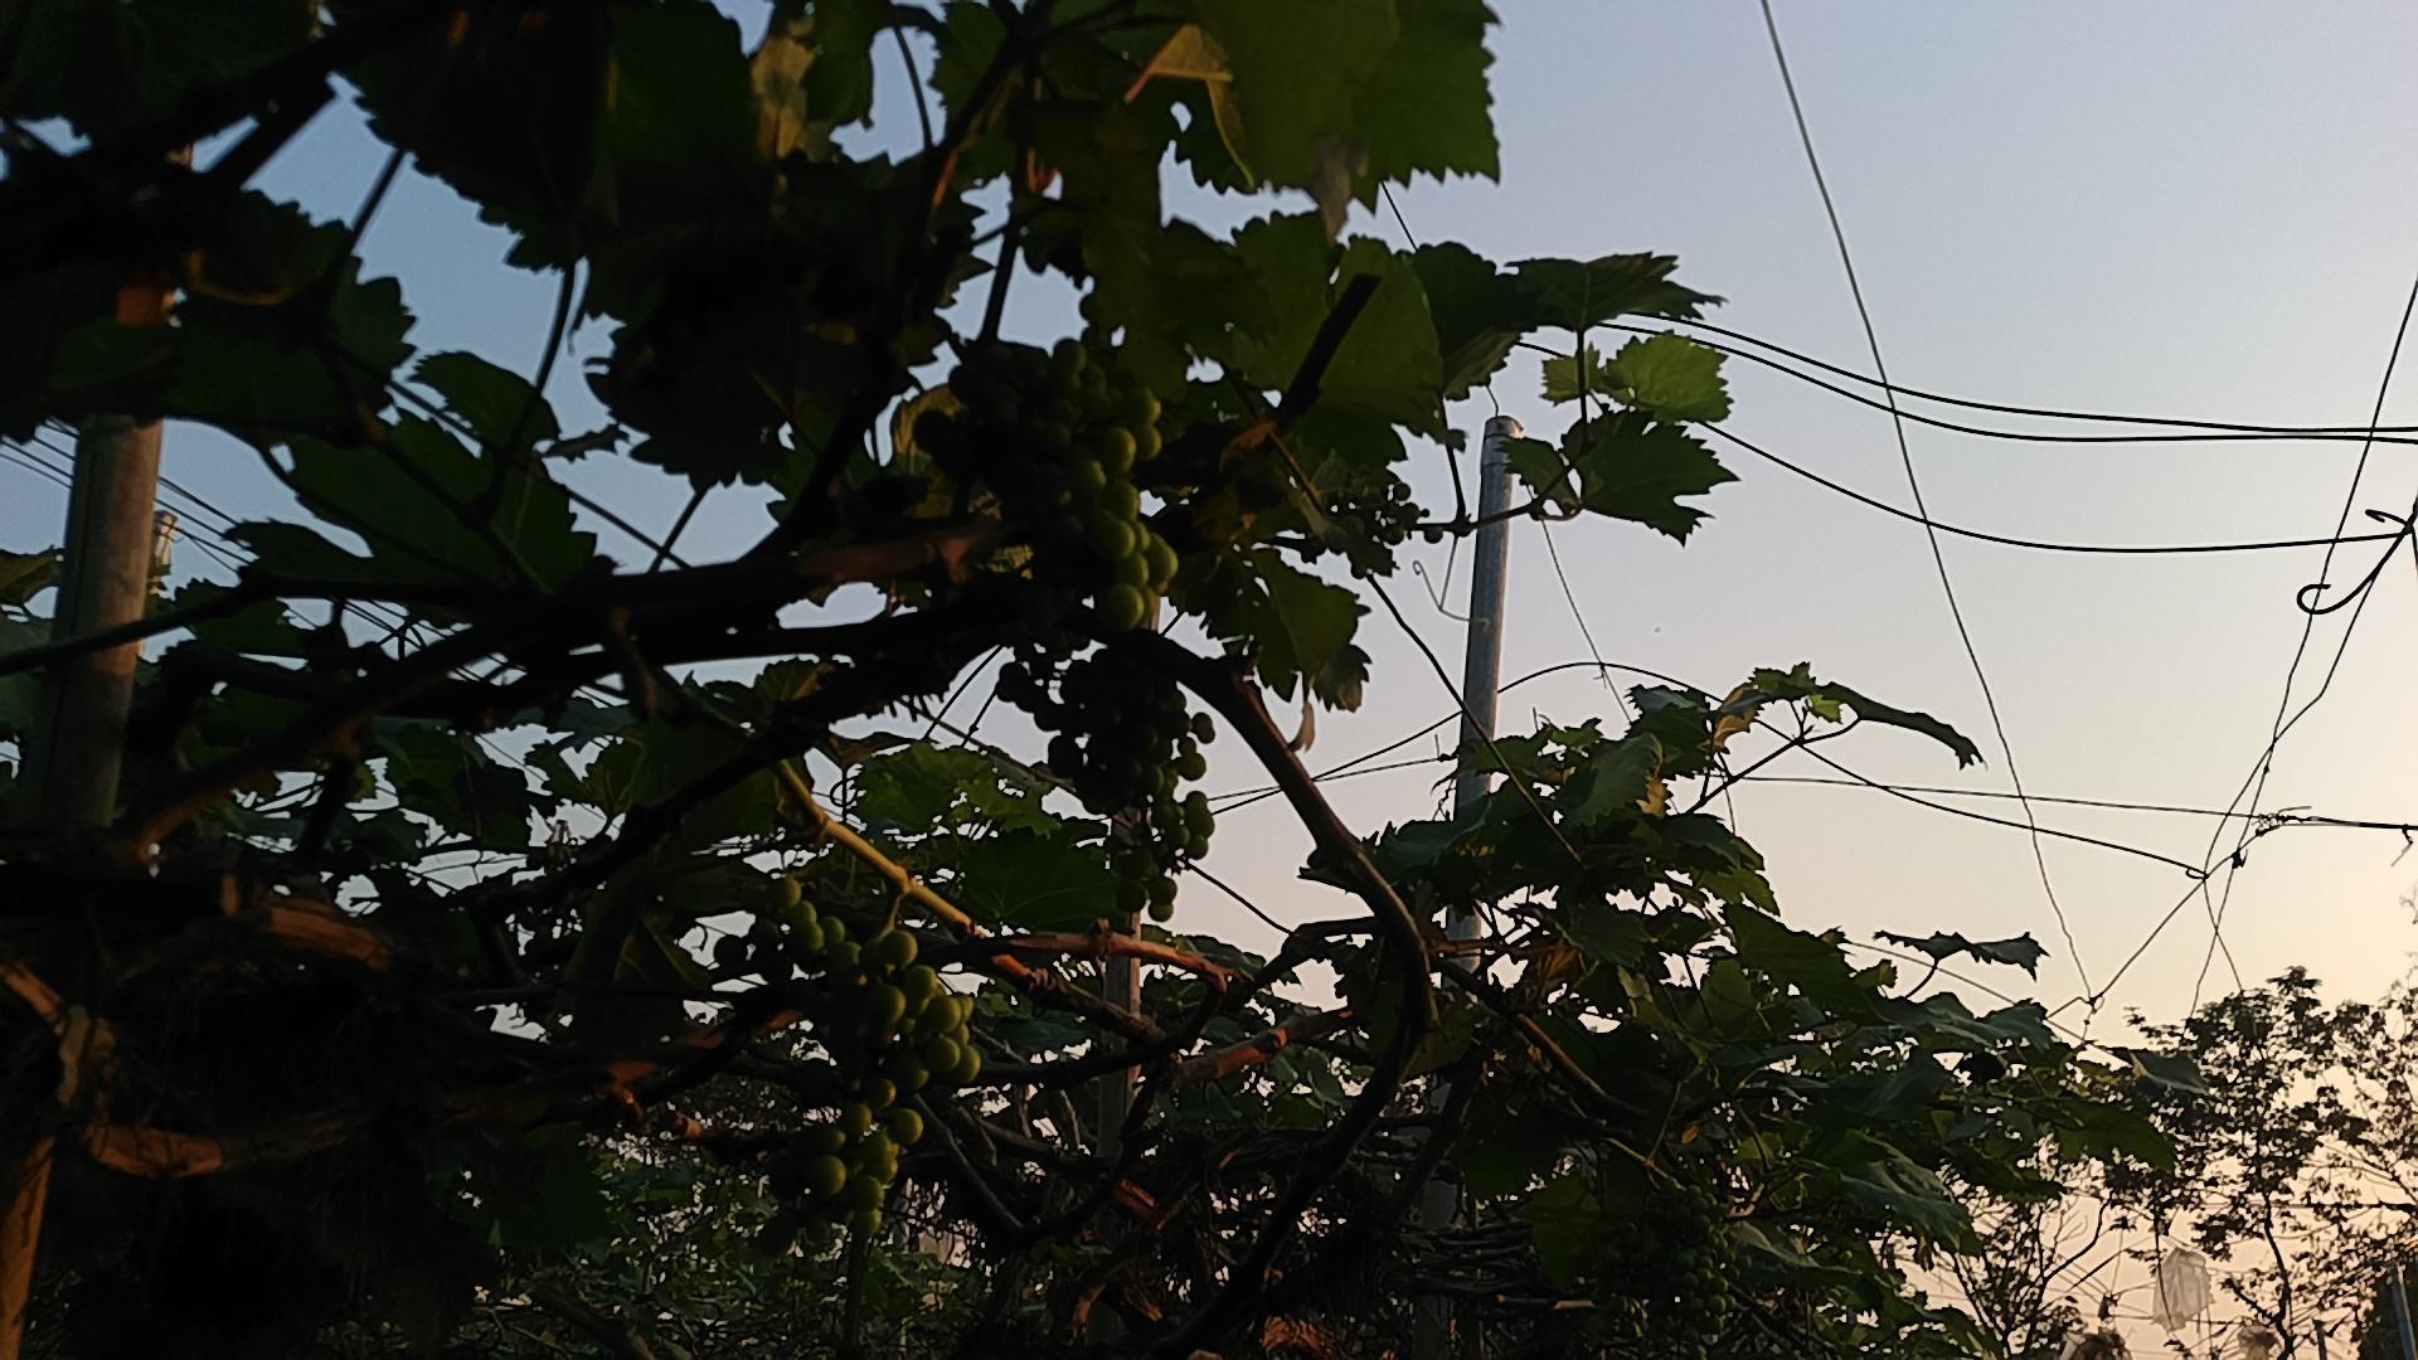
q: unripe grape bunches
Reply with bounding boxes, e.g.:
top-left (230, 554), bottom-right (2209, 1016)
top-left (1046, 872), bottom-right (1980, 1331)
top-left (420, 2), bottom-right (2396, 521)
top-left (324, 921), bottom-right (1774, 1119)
top-left (769, 878), bottom-right (979, 1230)
top-left (916, 340), bottom-right (1213, 919)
